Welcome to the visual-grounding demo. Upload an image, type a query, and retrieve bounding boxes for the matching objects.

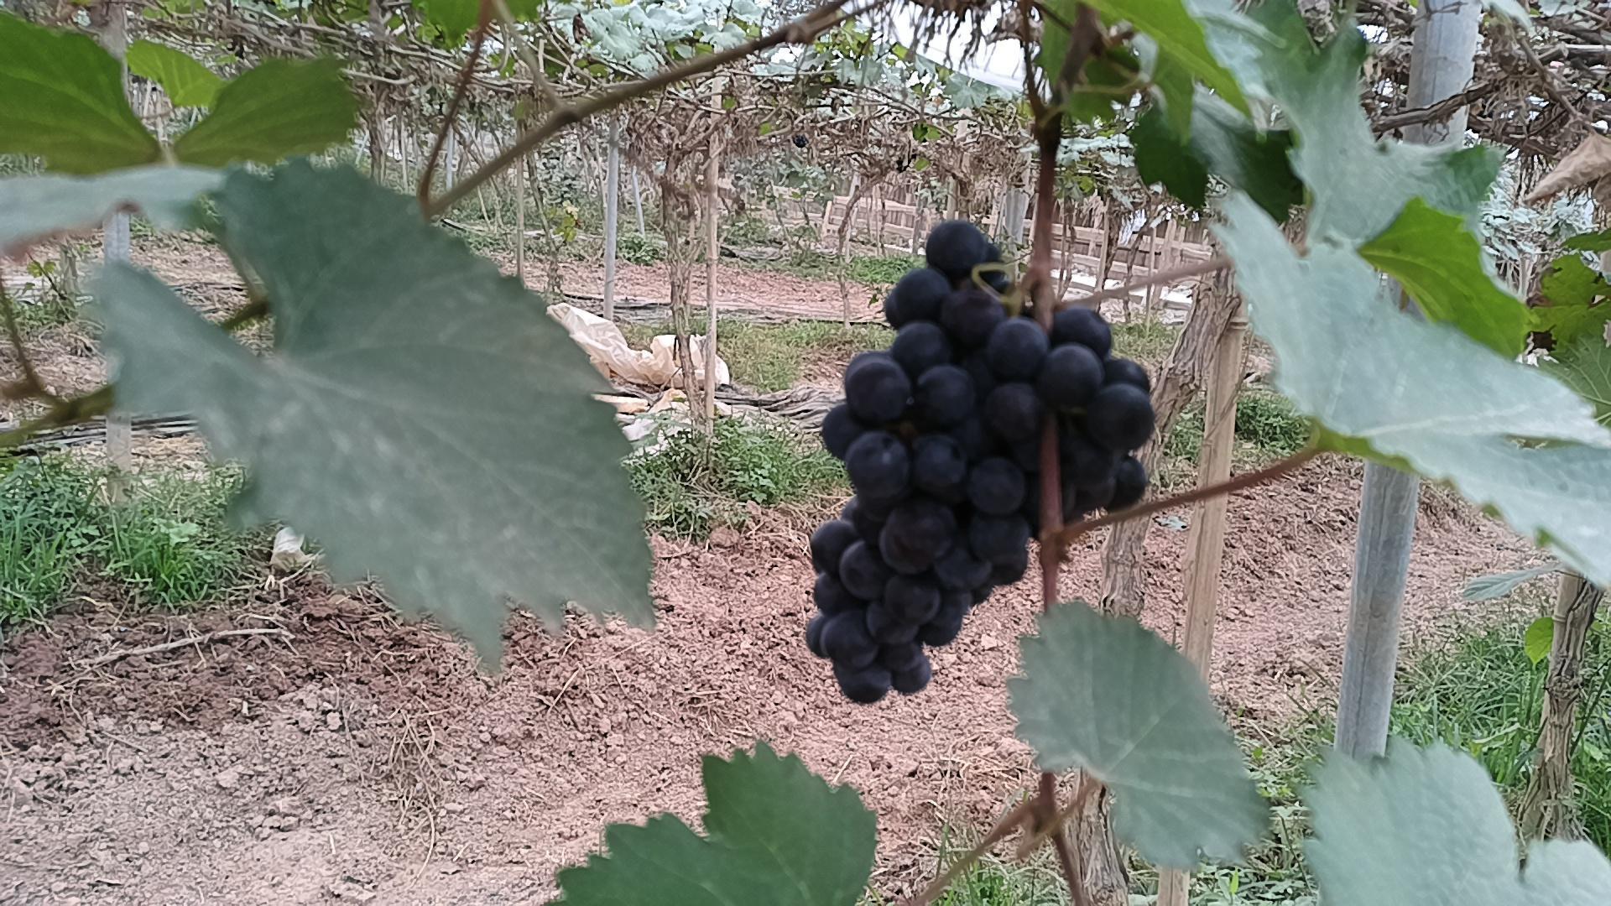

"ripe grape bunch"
[806,221,1154,702]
